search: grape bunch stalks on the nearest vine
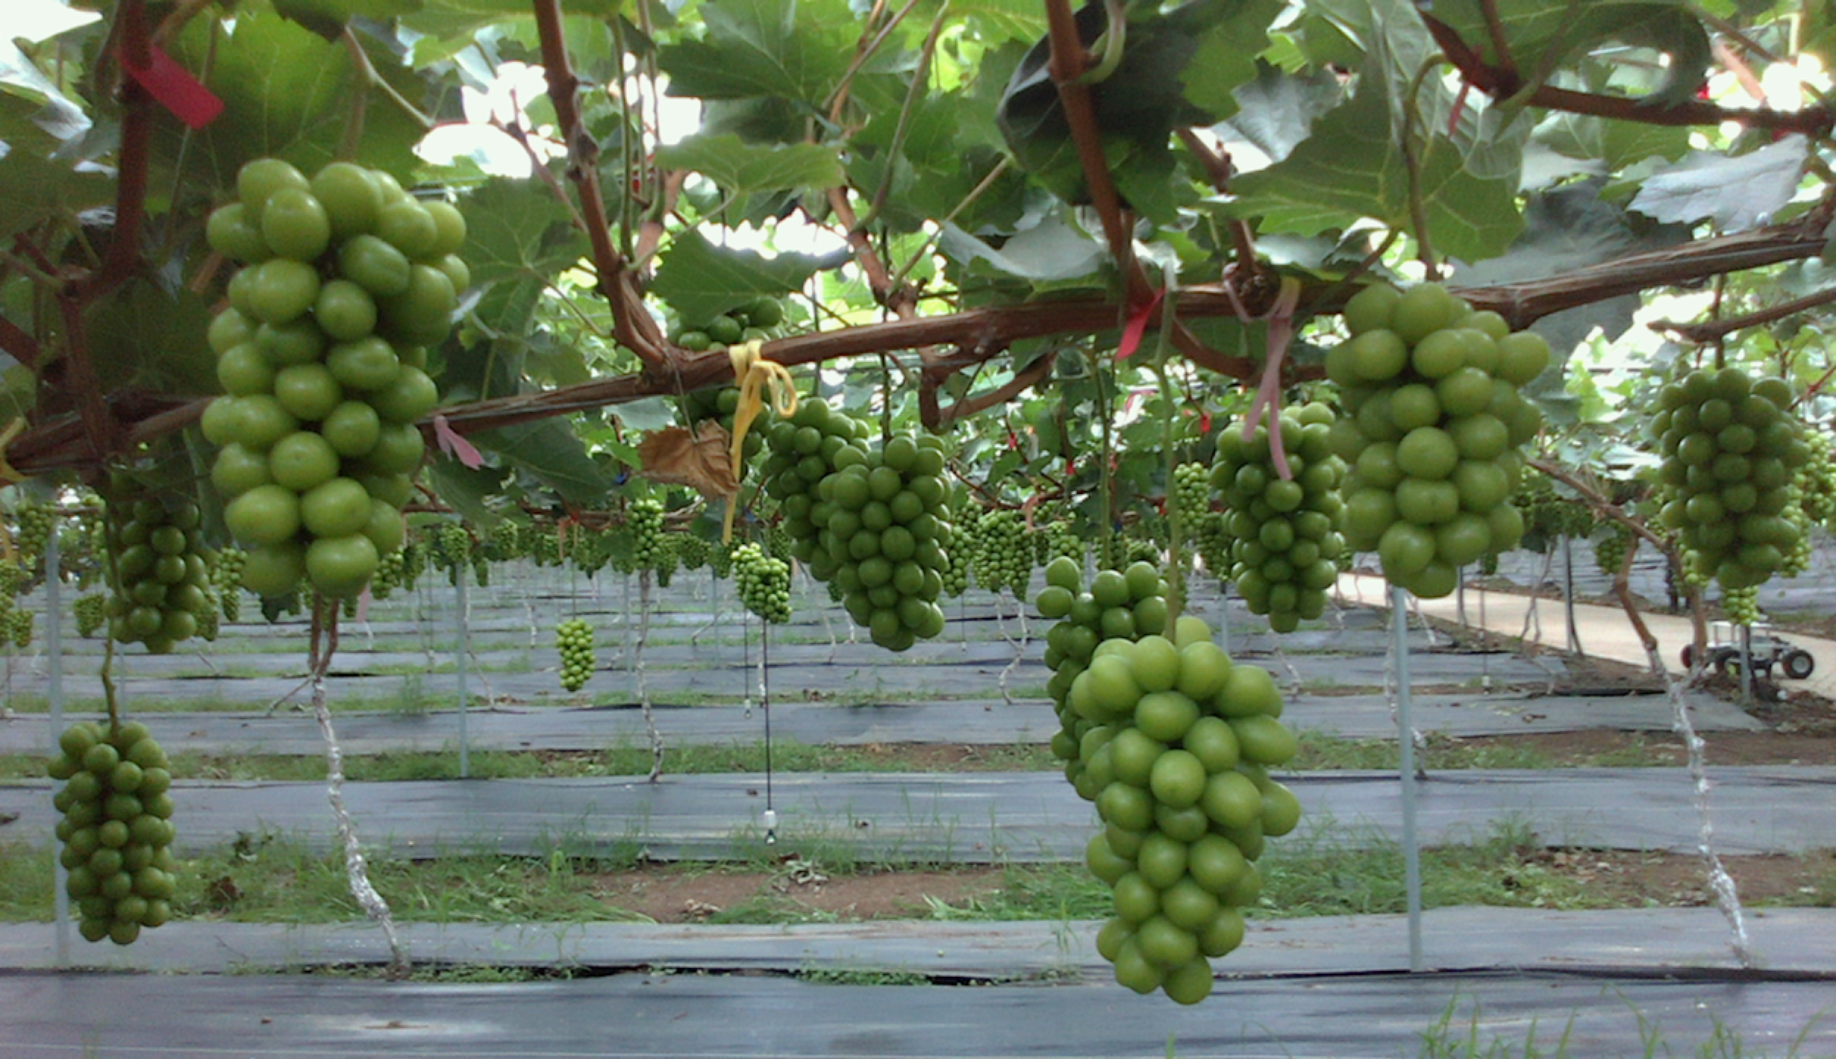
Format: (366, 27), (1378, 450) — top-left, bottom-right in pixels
(1401, 51), (1440, 278)
(1145, 263), (1186, 644)
(337, 69), (375, 159)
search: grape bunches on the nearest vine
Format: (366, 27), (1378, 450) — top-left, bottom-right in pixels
(1327, 282), (1549, 599)
(200, 162), (469, 597)
(1071, 616), (1299, 1003)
